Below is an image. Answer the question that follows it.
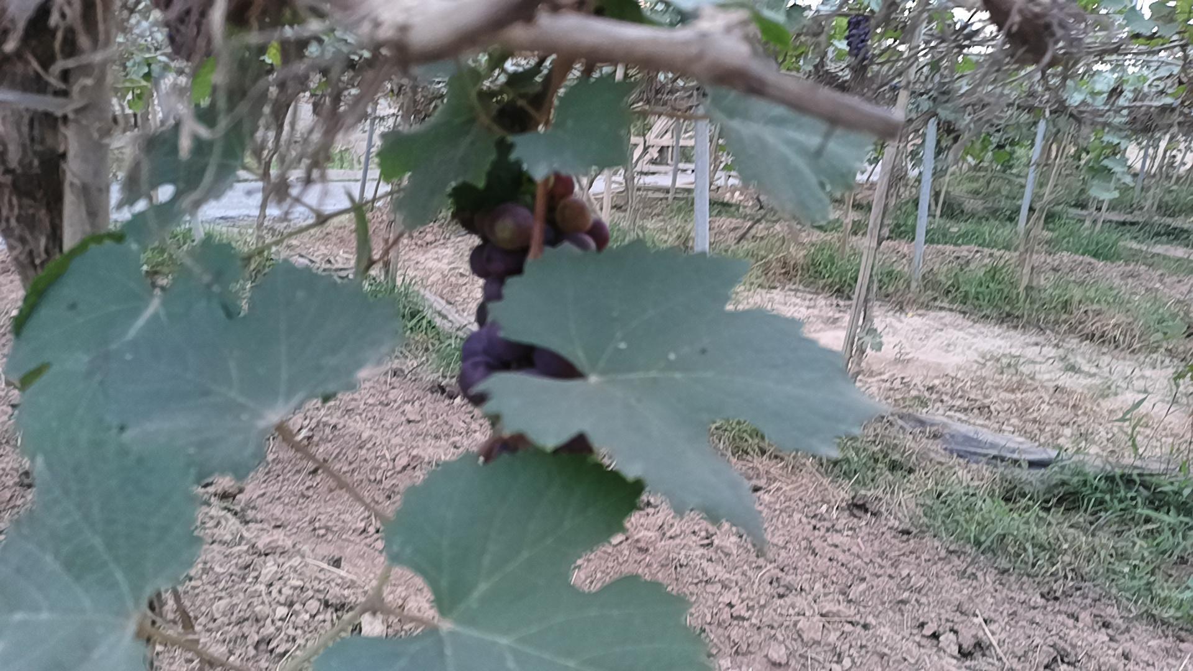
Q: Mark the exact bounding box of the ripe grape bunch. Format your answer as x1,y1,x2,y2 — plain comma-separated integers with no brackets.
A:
844,14,871,62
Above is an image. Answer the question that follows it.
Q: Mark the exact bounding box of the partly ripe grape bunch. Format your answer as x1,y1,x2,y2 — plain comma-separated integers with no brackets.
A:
457,173,609,406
